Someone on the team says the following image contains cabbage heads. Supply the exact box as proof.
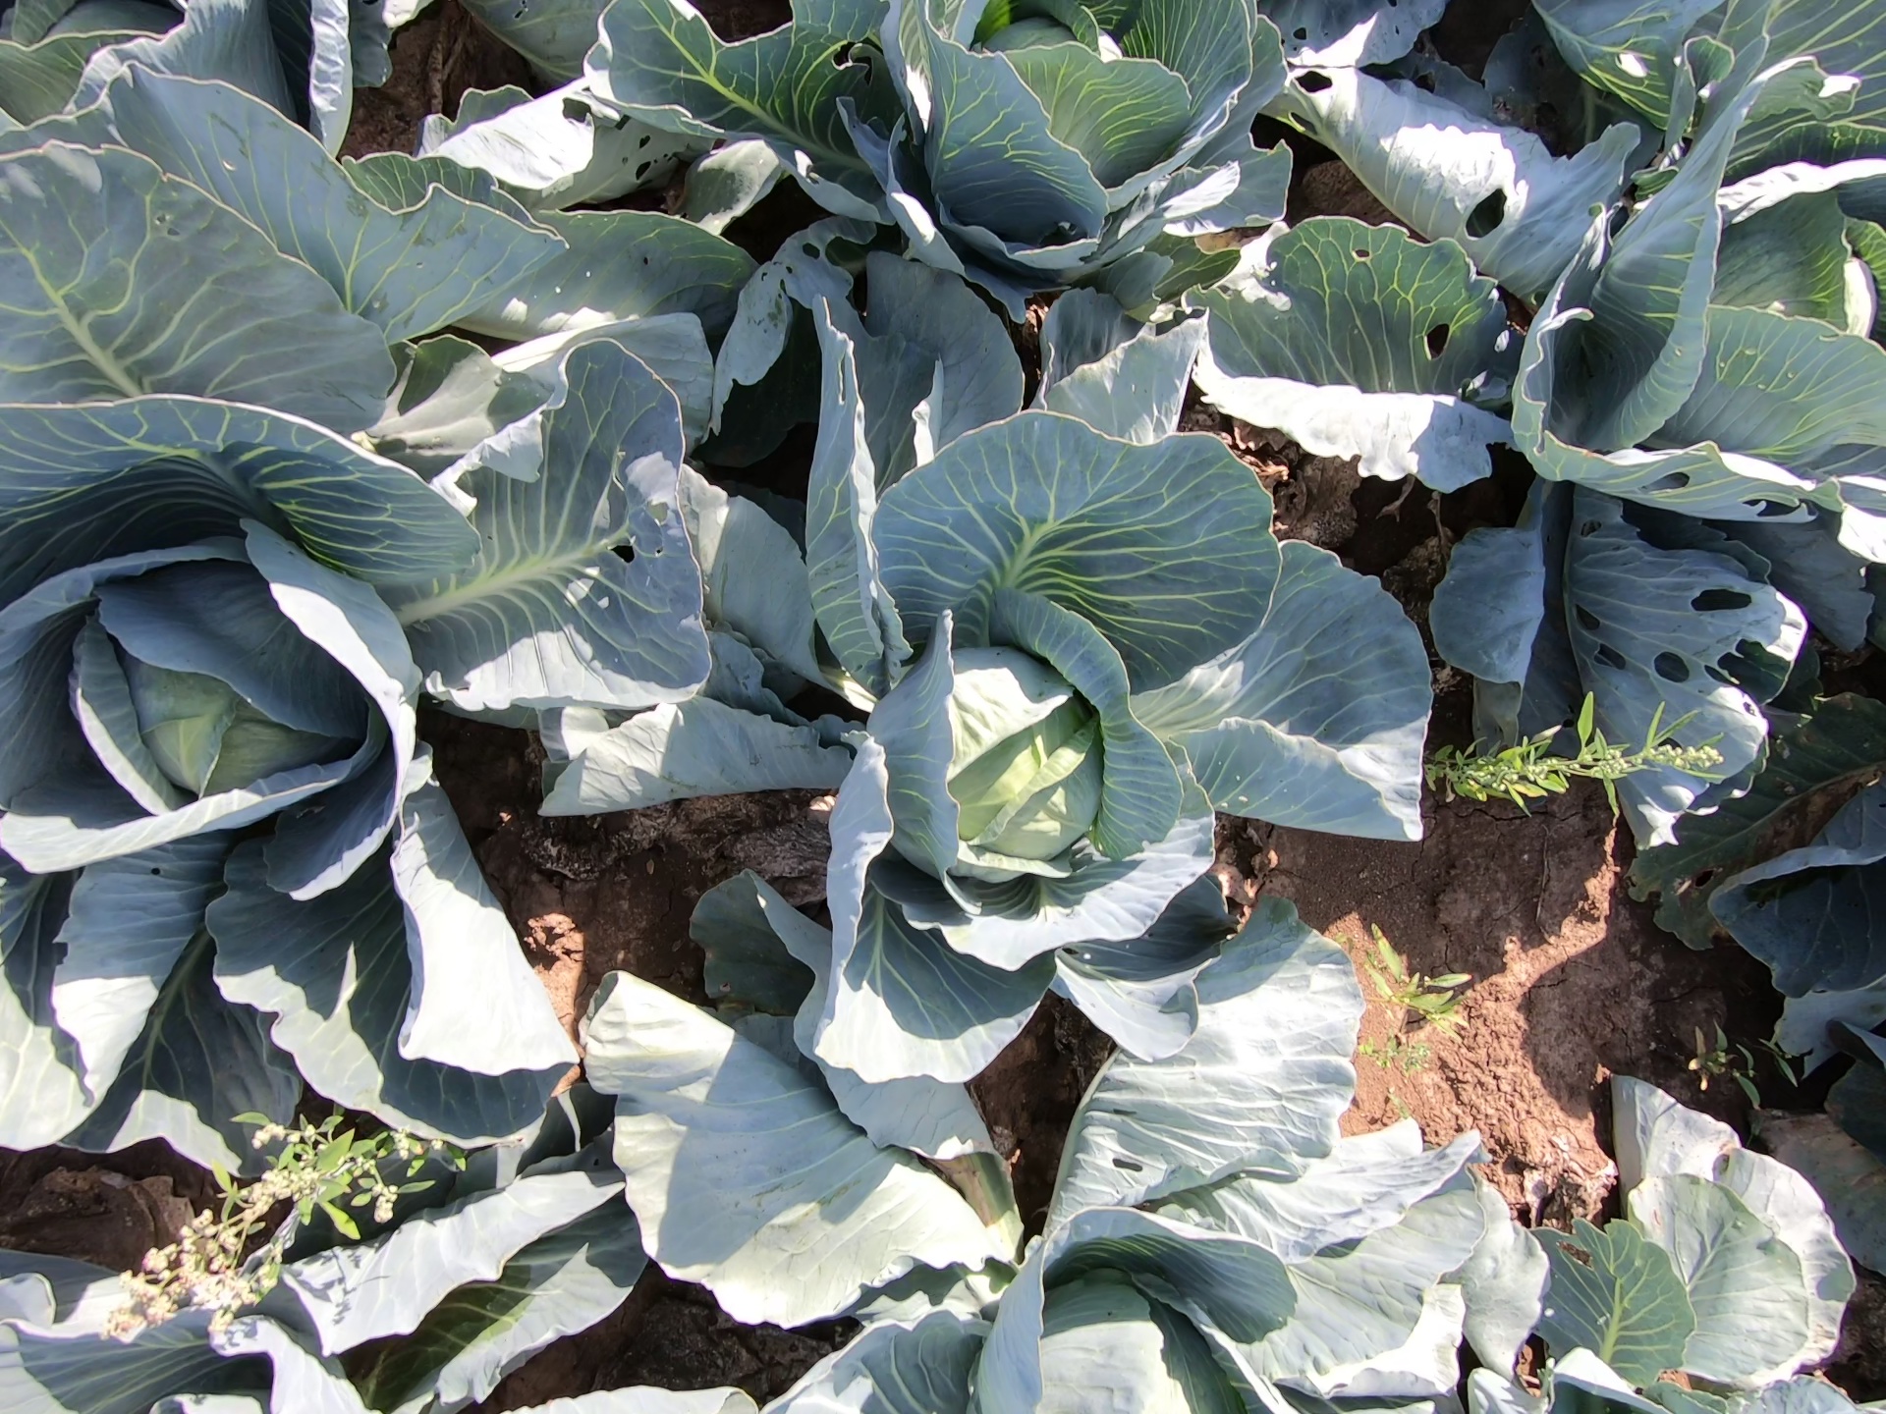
[6,2,219,160]
[958,11,1127,181]
[999,1279,1243,1412]
[1683,206,1880,387]
[97,561,359,798]
[897,644,1106,873]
